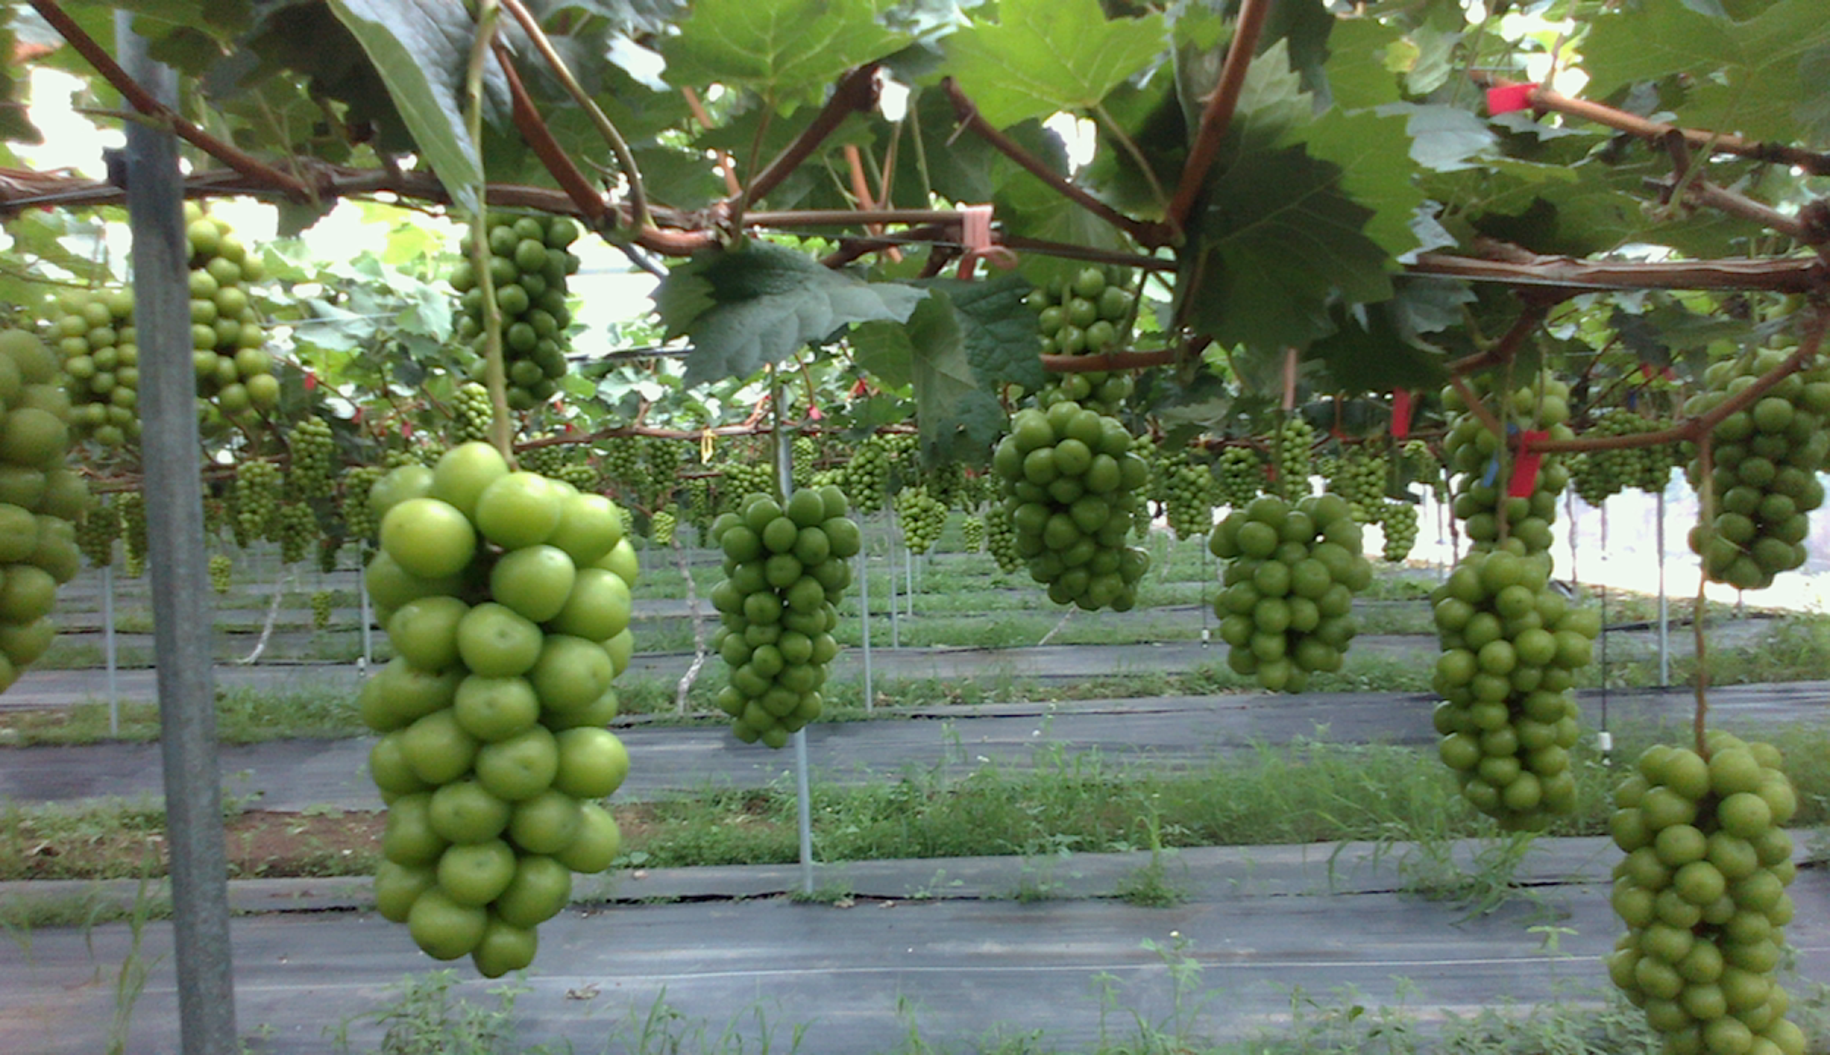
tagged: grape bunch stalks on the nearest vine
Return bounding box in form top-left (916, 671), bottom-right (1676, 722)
top-left (1692, 429), bottom-right (1713, 749)
top-left (465, 0), bottom-right (509, 460)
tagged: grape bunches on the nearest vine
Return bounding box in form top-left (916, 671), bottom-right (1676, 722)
top-left (0, 333), bottom-right (91, 692)
top-left (1610, 727), bottom-right (1808, 1051)
top-left (355, 441), bottom-right (638, 974)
